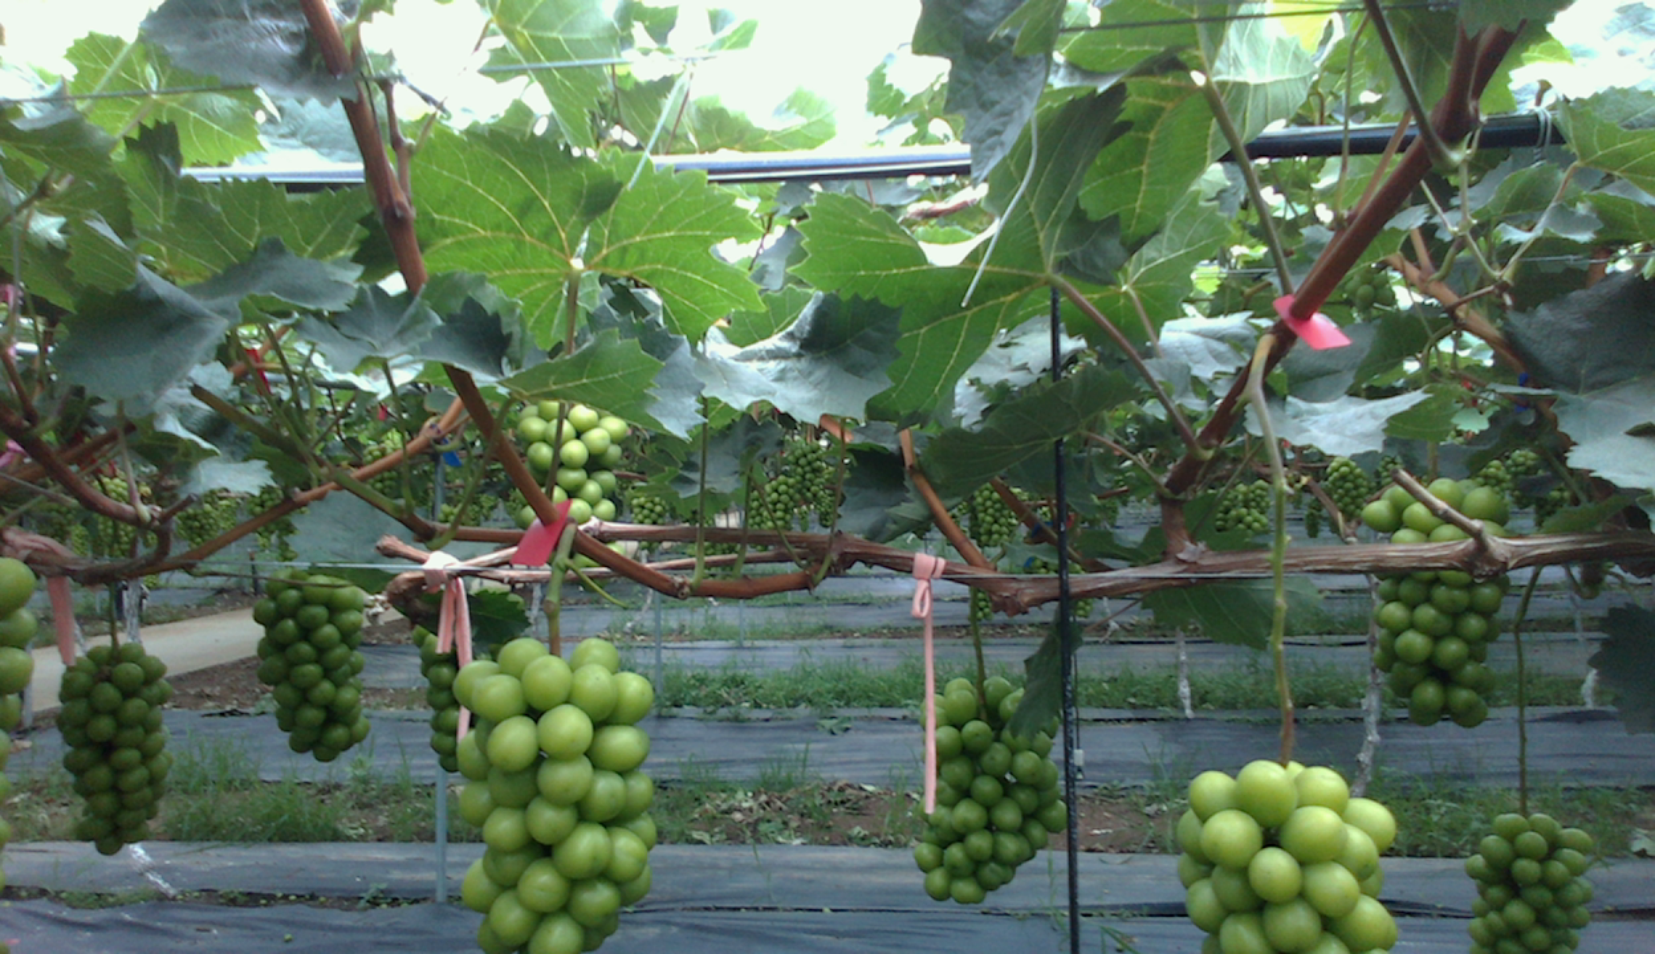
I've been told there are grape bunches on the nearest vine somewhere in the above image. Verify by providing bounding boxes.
[1175,763,1398,953]
[454,637,658,953]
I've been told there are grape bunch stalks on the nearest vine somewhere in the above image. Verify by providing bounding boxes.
[546,522,573,653]
[1232,342,1294,766]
